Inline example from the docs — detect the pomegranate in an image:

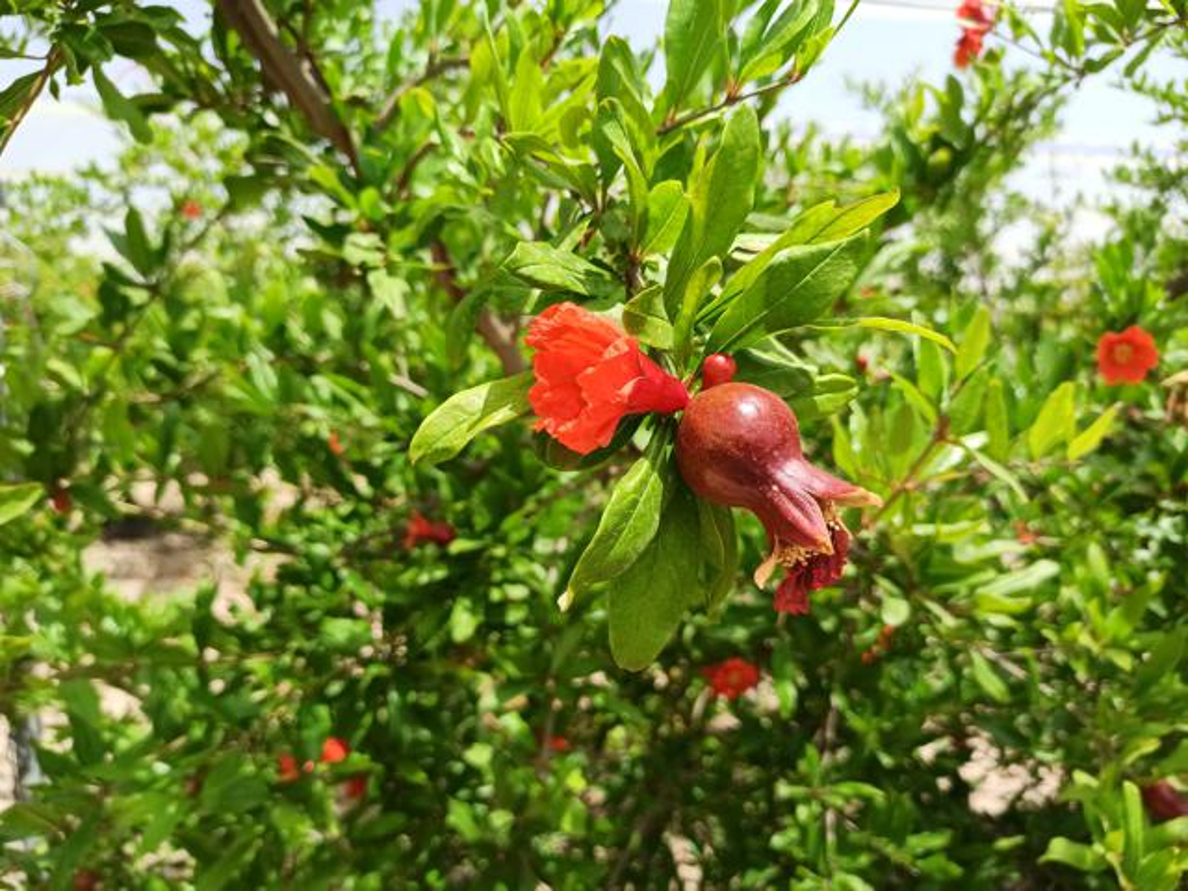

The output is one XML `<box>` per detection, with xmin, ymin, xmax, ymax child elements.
<box><xmin>676</xmin><ymin>382</ymin><xmax>882</xmax><ymax>592</ymax></box>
